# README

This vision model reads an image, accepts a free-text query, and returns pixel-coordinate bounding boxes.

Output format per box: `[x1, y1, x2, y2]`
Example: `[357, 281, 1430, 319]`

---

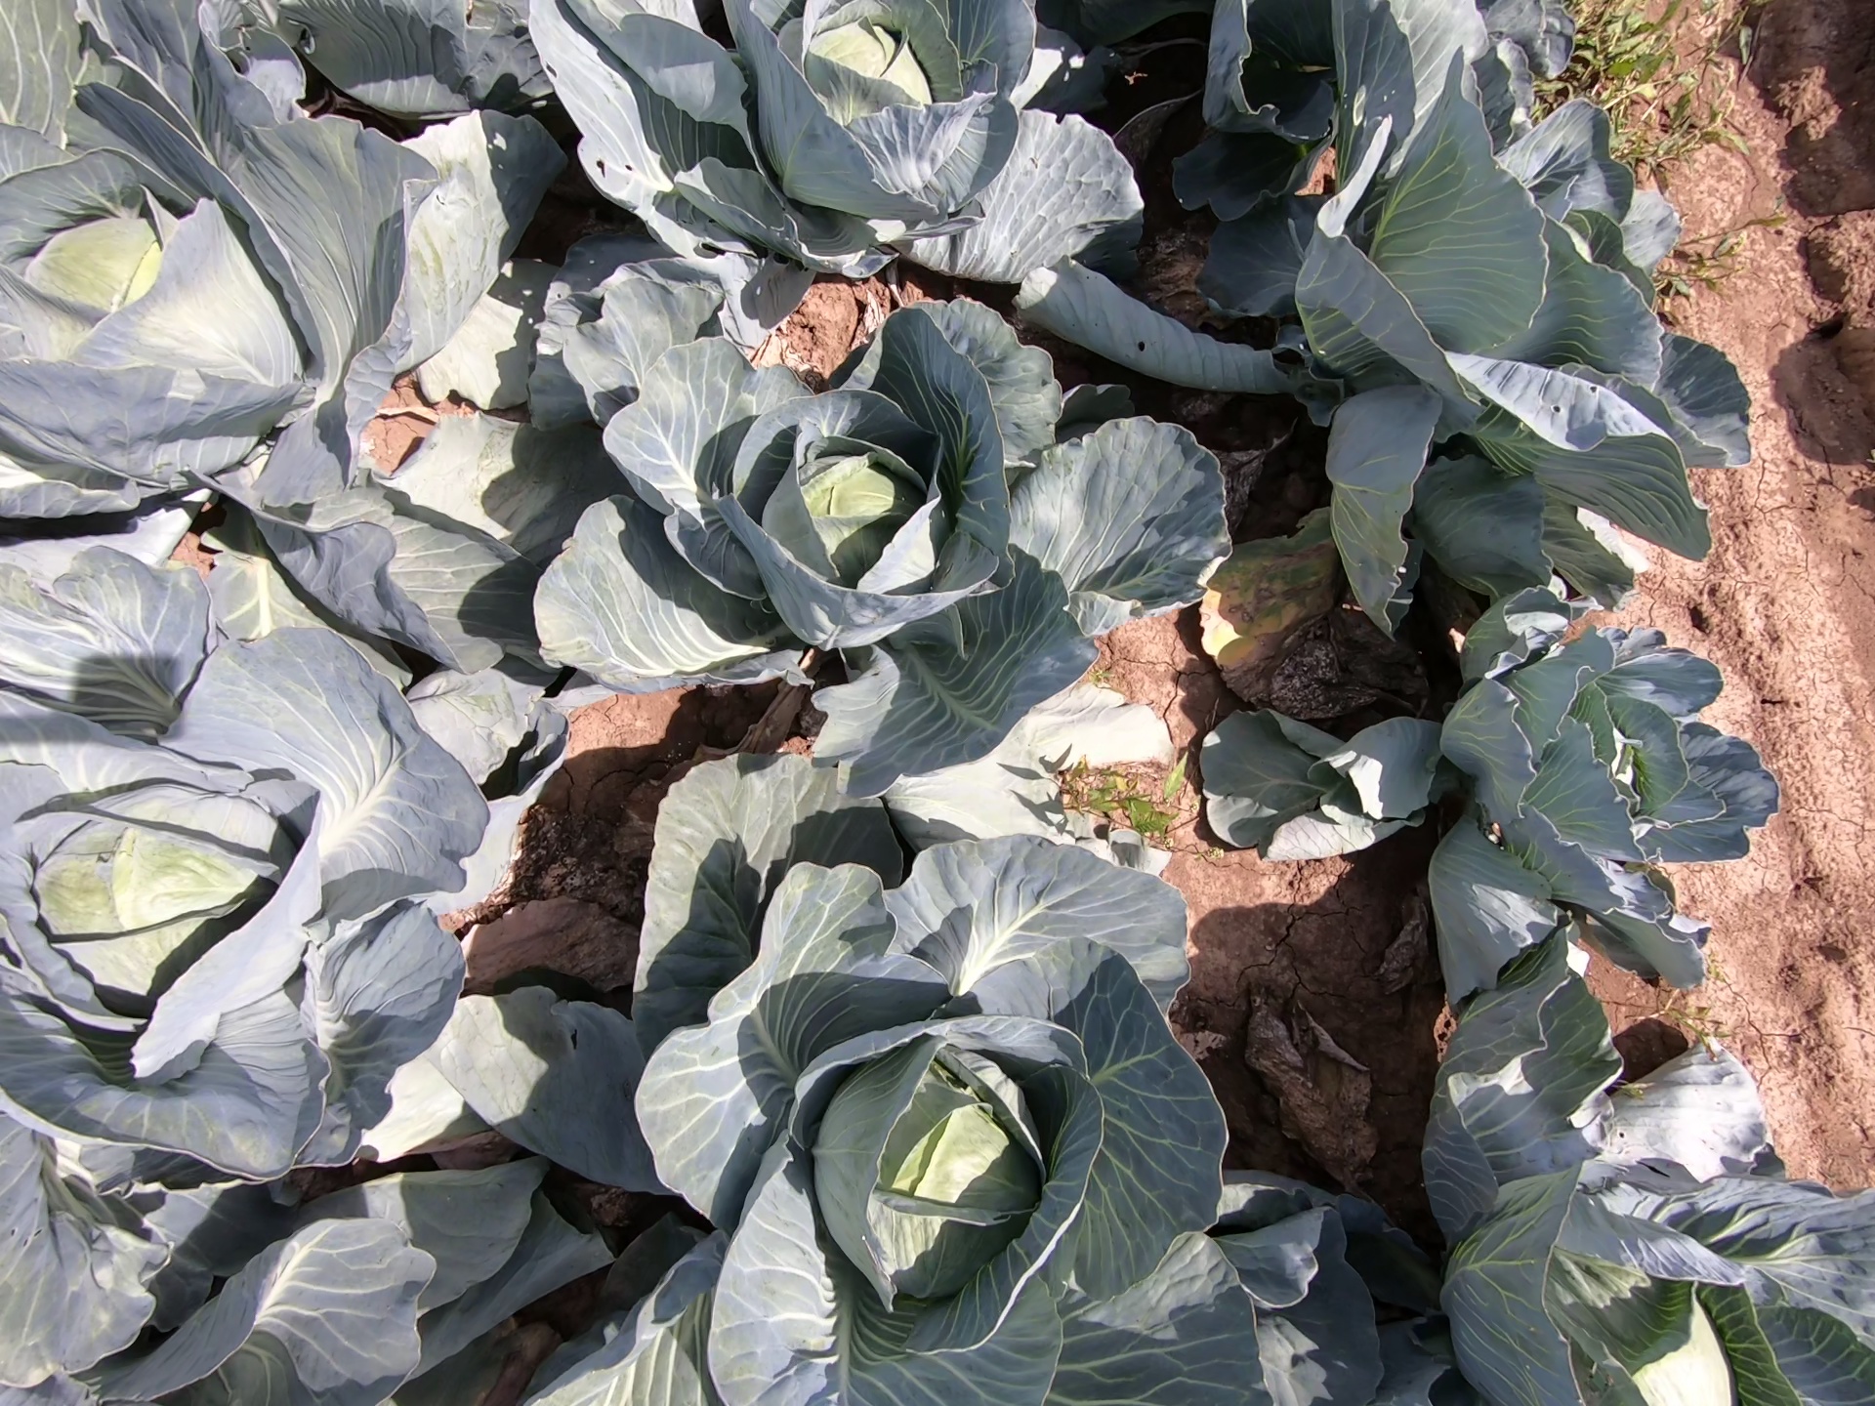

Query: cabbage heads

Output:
[817, 1050, 1035, 1298]
[776, 14, 932, 179]
[1477, 1212, 1740, 1401]
[16, 787, 308, 1022]
[767, 447, 935, 610]
[1420, 210, 1595, 371]
[14, 218, 292, 447]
